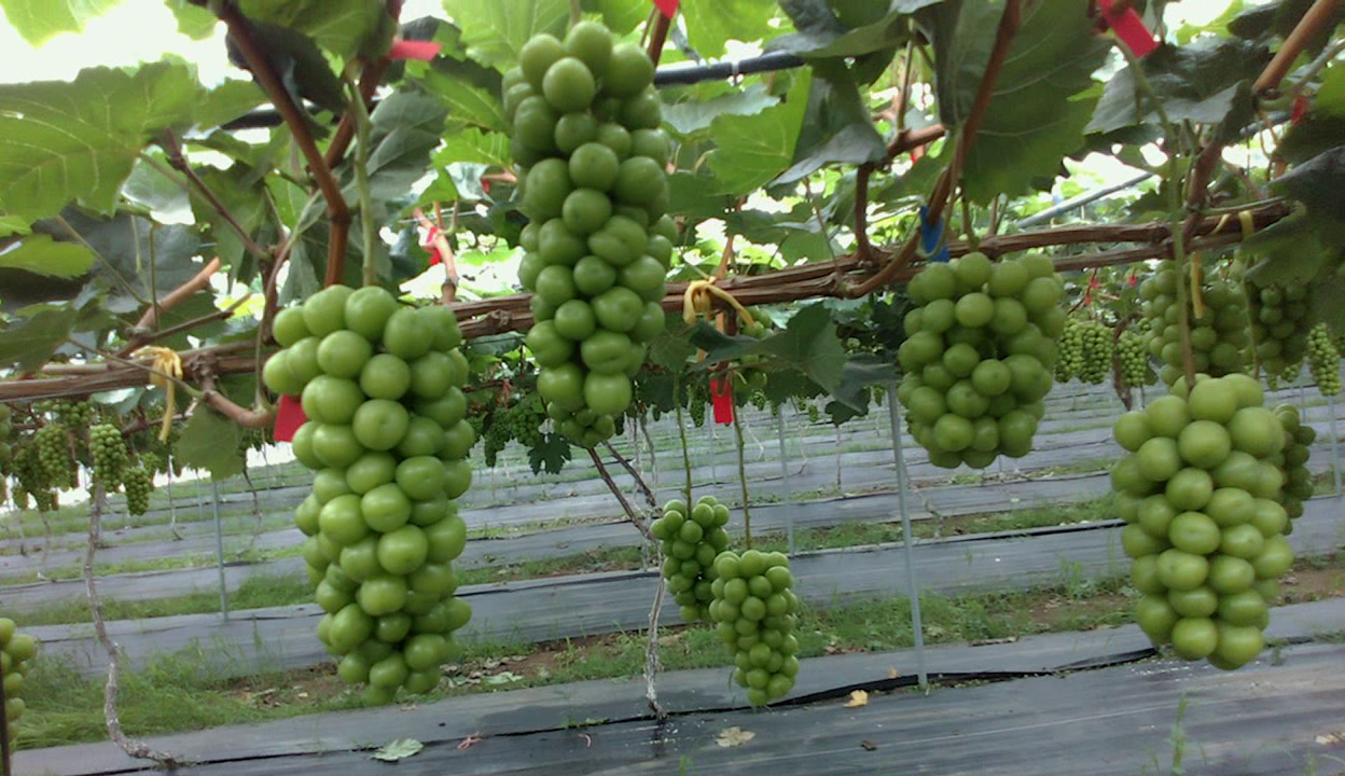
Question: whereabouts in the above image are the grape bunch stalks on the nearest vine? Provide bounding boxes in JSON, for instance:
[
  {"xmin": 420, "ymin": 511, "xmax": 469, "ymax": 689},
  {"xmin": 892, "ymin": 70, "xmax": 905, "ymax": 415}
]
[
  {"xmin": 1115, "ymin": 39, "xmax": 1195, "ymax": 387},
  {"xmin": 348, "ymin": 80, "xmax": 376, "ymax": 283},
  {"xmin": 567, "ymin": 0, "xmax": 579, "ymax": 23},
  {"xmin": 962, "ymin": 184, "xmax": 980, "ymax": 248}
]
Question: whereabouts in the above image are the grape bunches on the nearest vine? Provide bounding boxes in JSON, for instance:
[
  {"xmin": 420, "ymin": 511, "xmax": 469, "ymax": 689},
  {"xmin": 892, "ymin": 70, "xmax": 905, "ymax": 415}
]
[
  {"xmin": 262, "ymin": 285, "xmax": 473, "ymax": 614},
  {"xmin": 501, "ymin": 22, "xmax": 676, "ymax": 419},
  {"xmin": 1109, "ymin": 373, "xmax": 1295, "ymax": 673},
  {"xmin": 899, "ymin": 249, "xmax": 1066, "ymax": 470},
  {"xmin": 305, "ymin": 541, "xmax": 470, "ymax": 705}
]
